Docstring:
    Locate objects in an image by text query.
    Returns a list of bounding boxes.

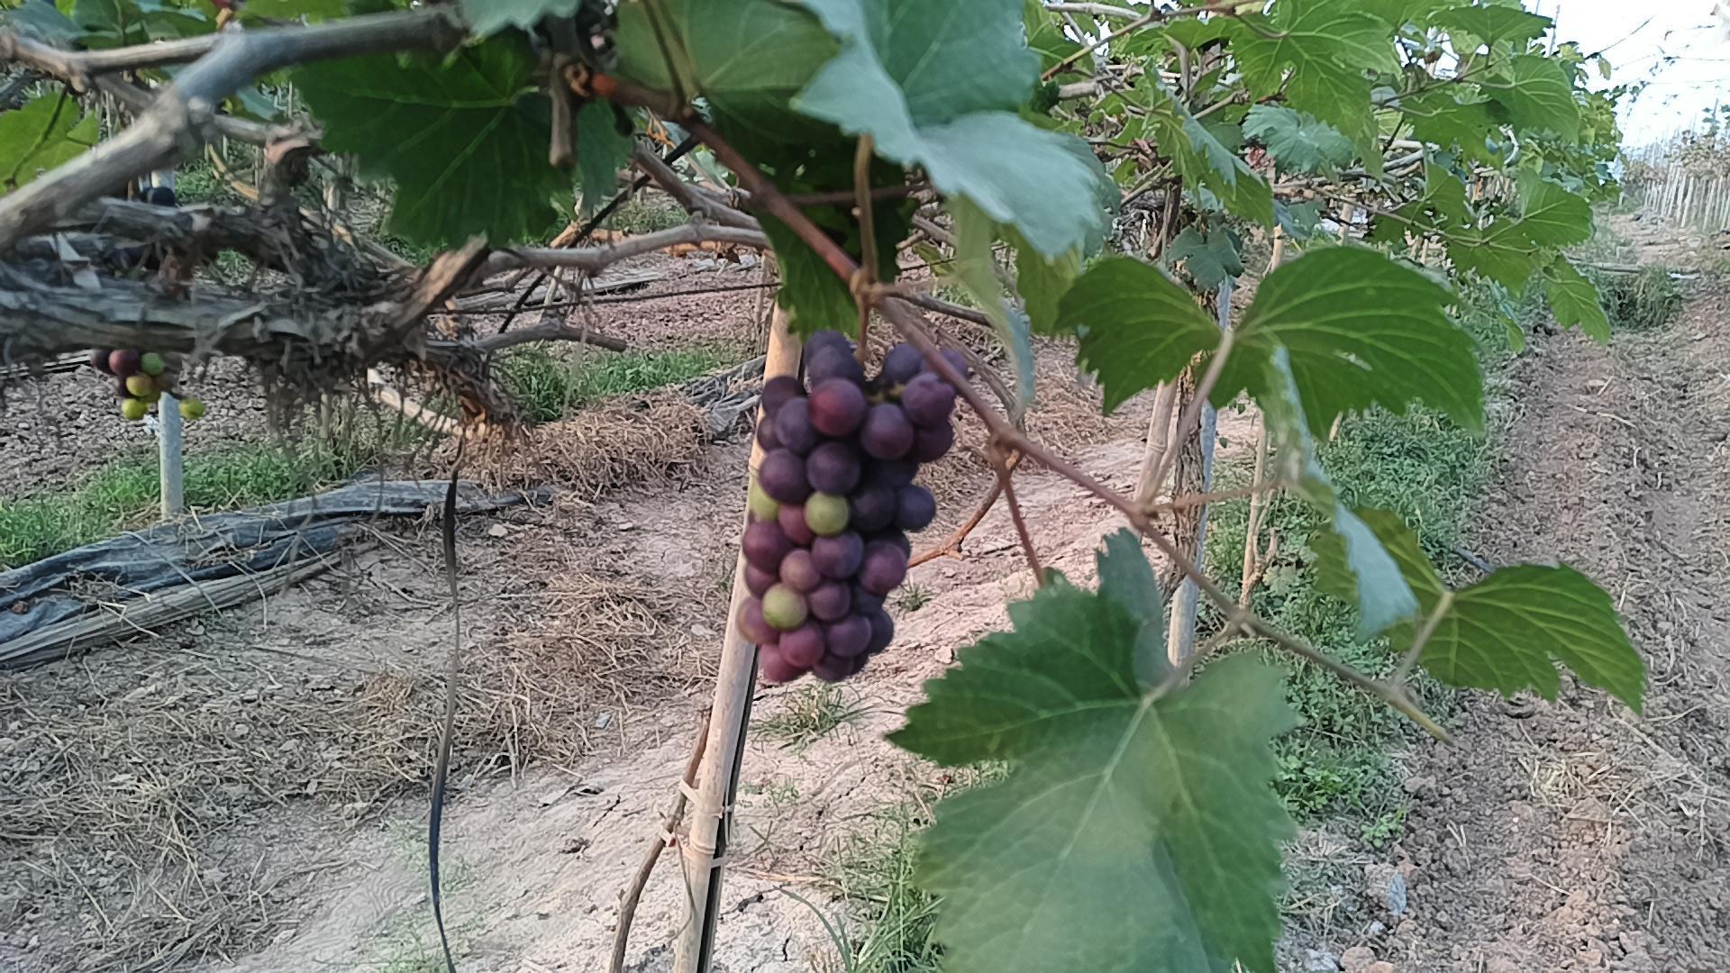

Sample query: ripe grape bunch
[139,186,177,206]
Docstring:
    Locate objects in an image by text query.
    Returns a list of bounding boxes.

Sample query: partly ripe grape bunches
[93,350,204,420]
[736,331,955,682]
